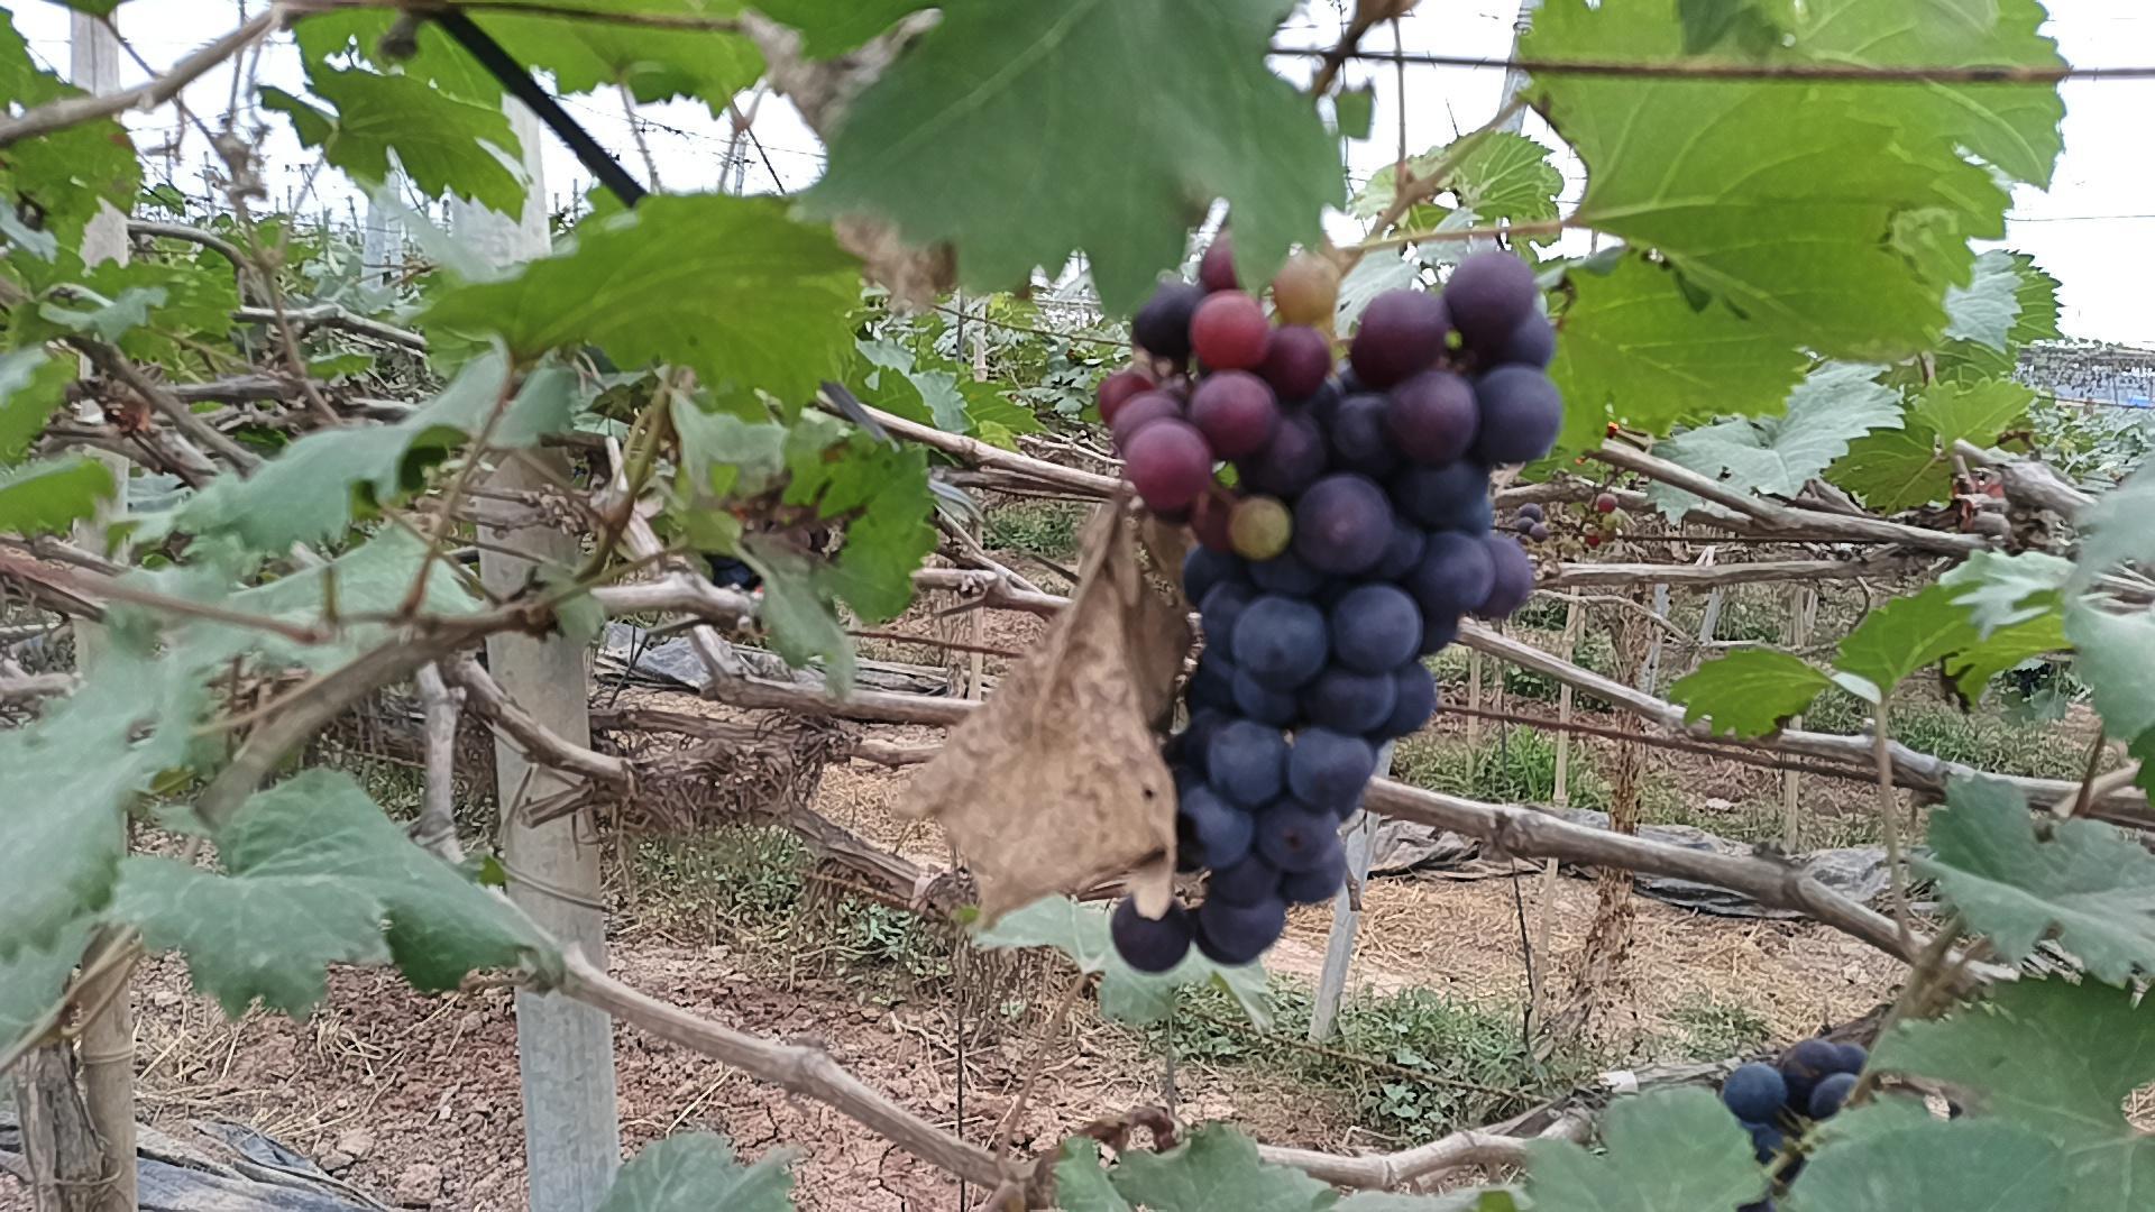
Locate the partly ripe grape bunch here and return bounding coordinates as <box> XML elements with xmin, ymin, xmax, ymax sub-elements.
<box><xmin>1112</xmin><ymin>248</ymin><xmax>1561</xmax><ymax>972</ymax></box>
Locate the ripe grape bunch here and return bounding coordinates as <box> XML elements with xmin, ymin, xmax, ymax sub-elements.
<box><xmin>1717</xmin><ymin>1006</ymin><xmax>1886</xmax><ymax>1165</ymax></box>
